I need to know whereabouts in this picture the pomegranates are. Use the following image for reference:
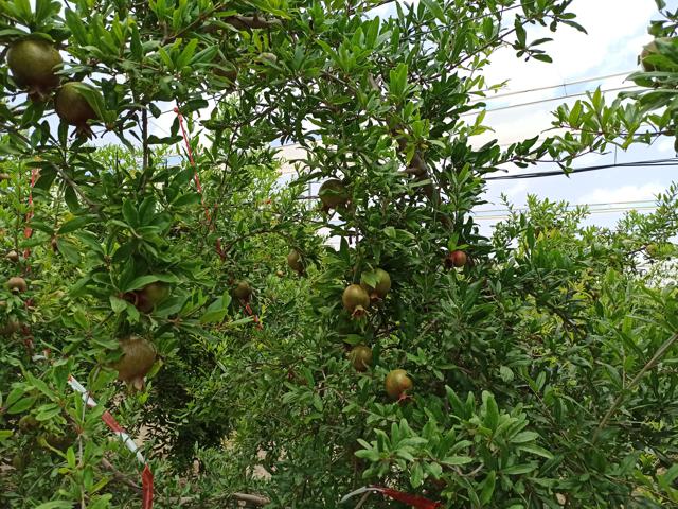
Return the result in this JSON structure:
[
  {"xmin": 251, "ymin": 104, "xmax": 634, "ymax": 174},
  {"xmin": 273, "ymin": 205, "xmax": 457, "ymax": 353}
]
[
  {"xmin": 7, "ymin": 39, "xmax": 64, "ymax": 100},
  {"xmin": 114, "ymin": 337, "xmax": 155, "ymax": 392},
  {"xmin": 7, "ymin": 276, "xmax": 28, "ymax": 296},
  {"xmin": 445, "ymin": 250, "xmax": 467, "ymax": 269},
  {"xmin": 341, "ymin": 284, "xmax": 371, "ymax": 317},
  {"xmin": 640, "ymin": 37, "xmax": 672, "ymax": 72},
  {"xmin": 350, "ymin": 345, "xmax": 374, "ymax": 373},
  {"xmin": 54, "ymin": 82, "xmax": 99, "ymax": 141},
  {"xmin": 231, "ymin": 280, "xmax": 252, "ymax": 300},
  {"xmin": 360, "ymin": 268, "xmax": 391, "ymax": 306},
  {"xmin": 213, "ymin": 67, "xmax": 238, "ymax": 92},
  {"xmin": 5, "ymin": 250, "xmax": 18, "ymax": 263},
  {"xmin": 18, "ymin": 415, "xmax": 40, "ymax": 435},
  {"xmin": 123, "ymin": 287, "xmax": 171, "ymax": 314},
  {"xmin": 385, "ymin": 369, "xmax": 415, "ymax": 401},
  {"xmin": 287, "ymin": 250, "xmax": 305, "ymax": 279},
  {"xmin": 316, "ymin": 179, "xmax": 347, "ymax": 216}
]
